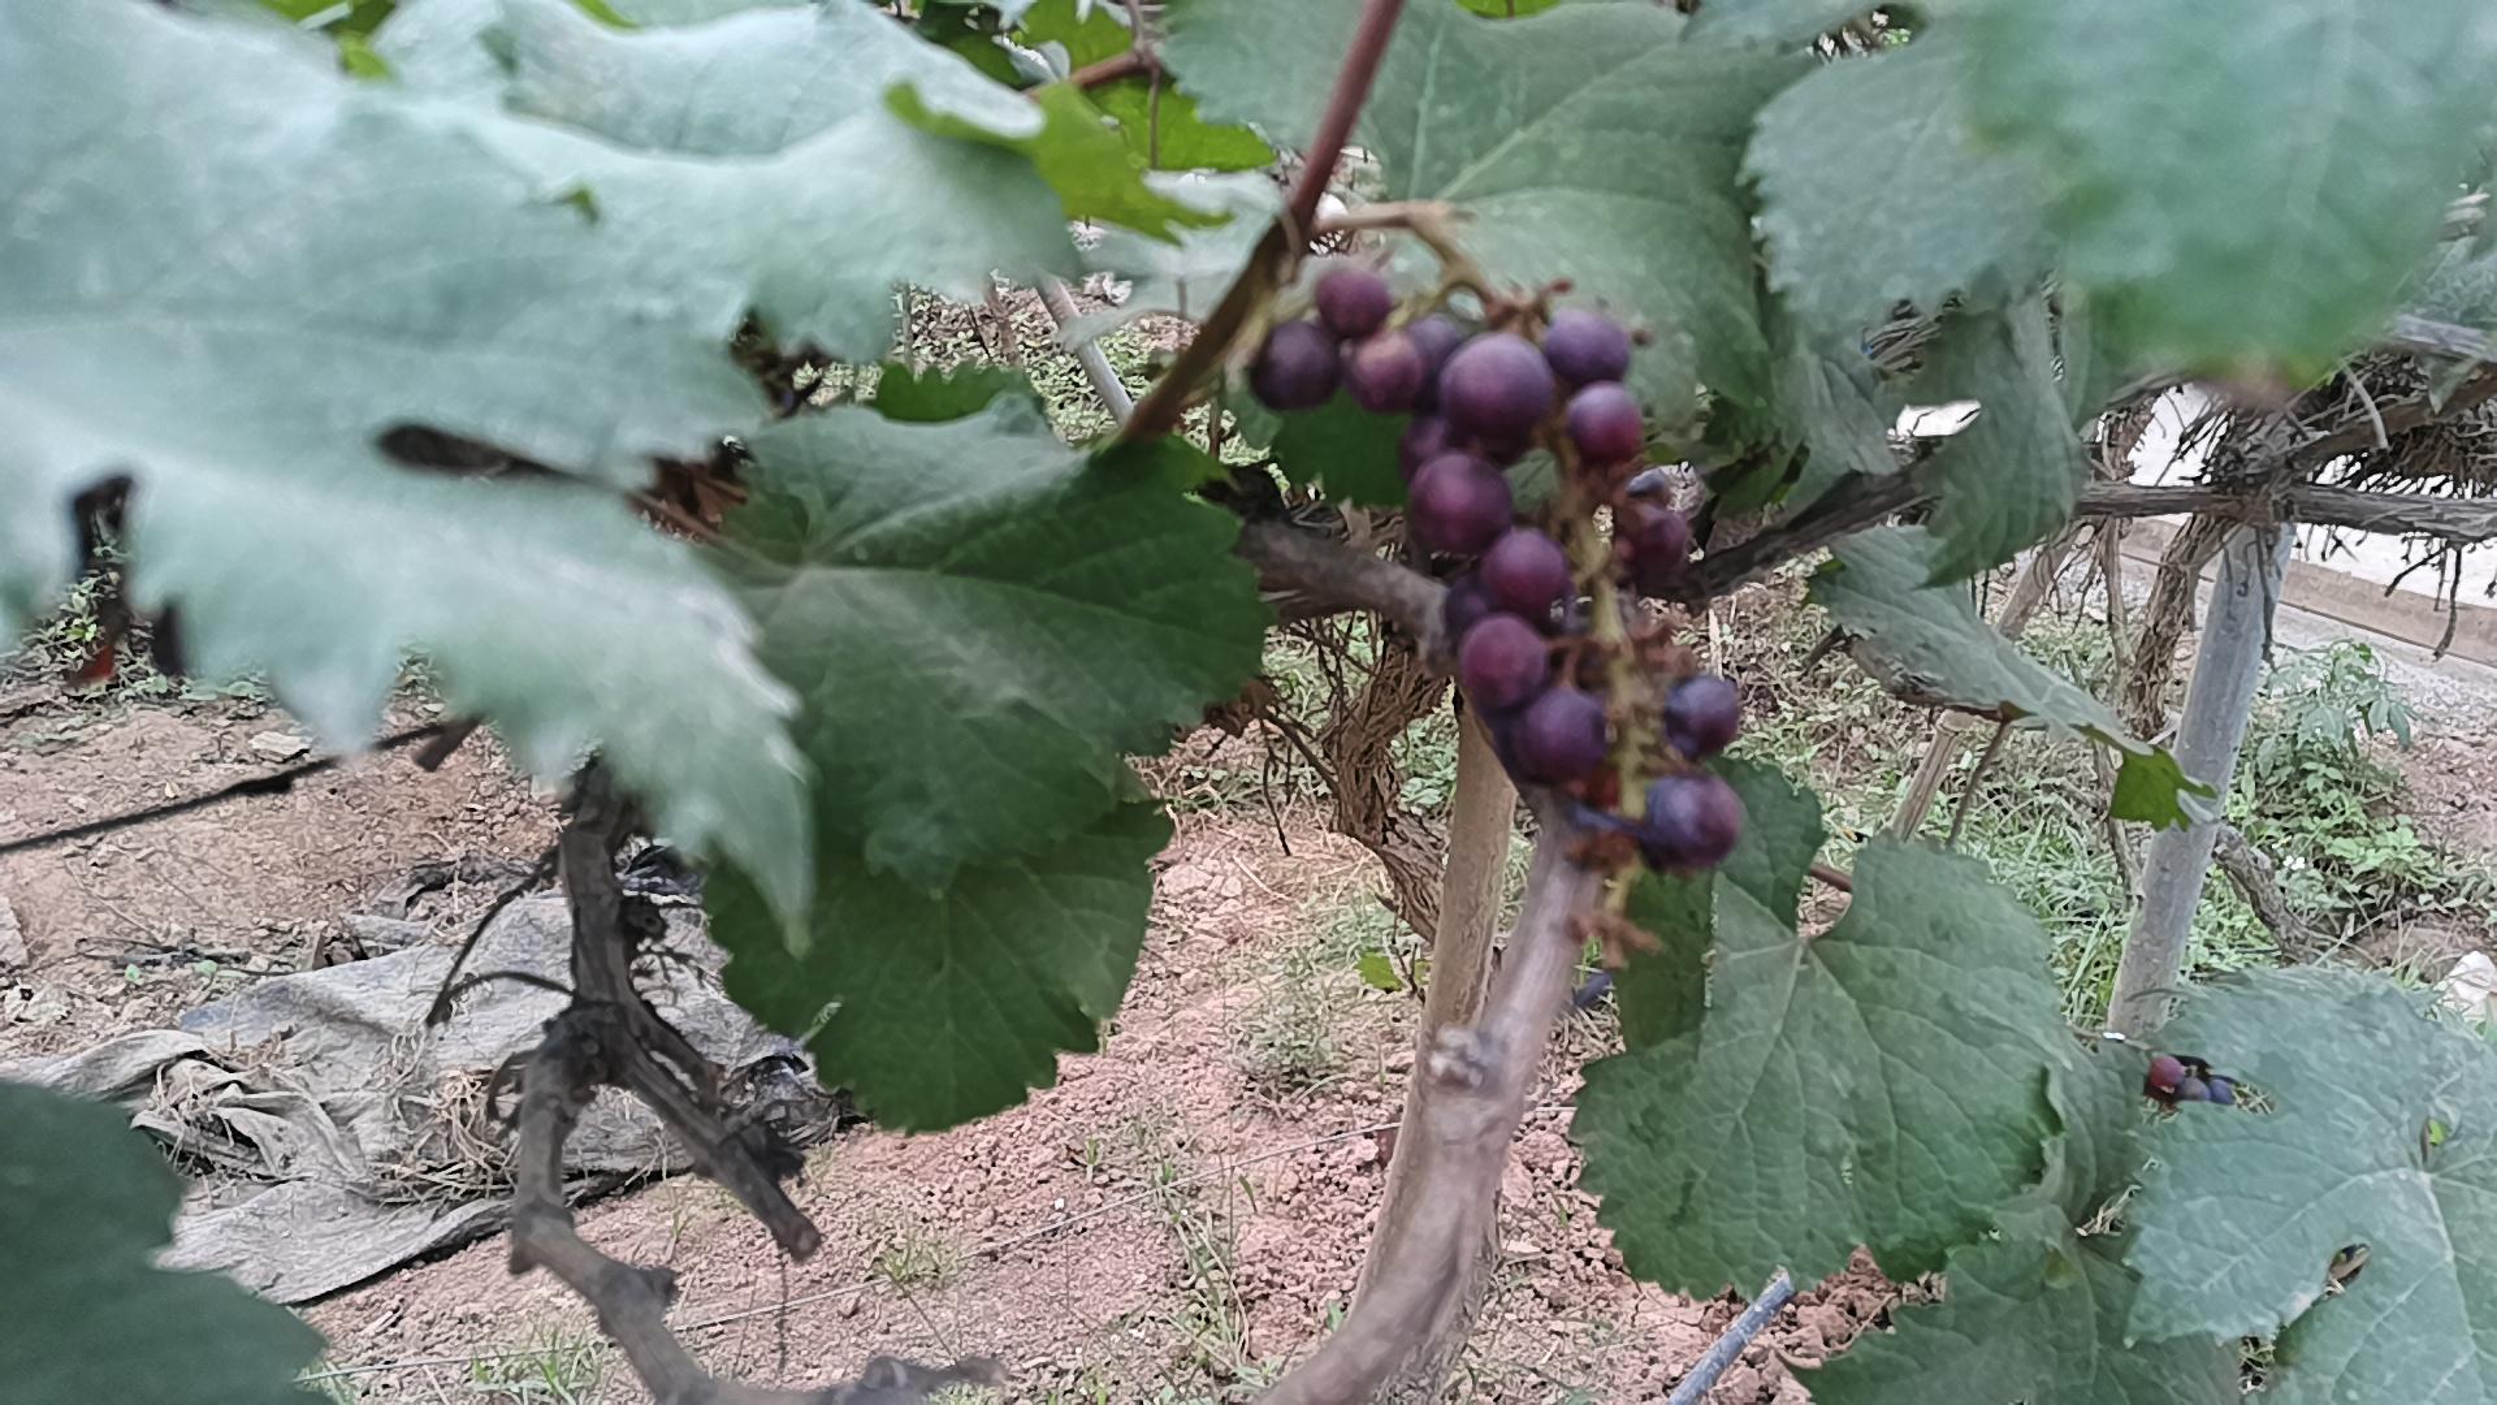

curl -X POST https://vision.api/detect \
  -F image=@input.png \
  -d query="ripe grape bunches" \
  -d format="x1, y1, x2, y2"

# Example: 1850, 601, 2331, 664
2143, 1049, 2243, 1111
1251, 259, 1747, 873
